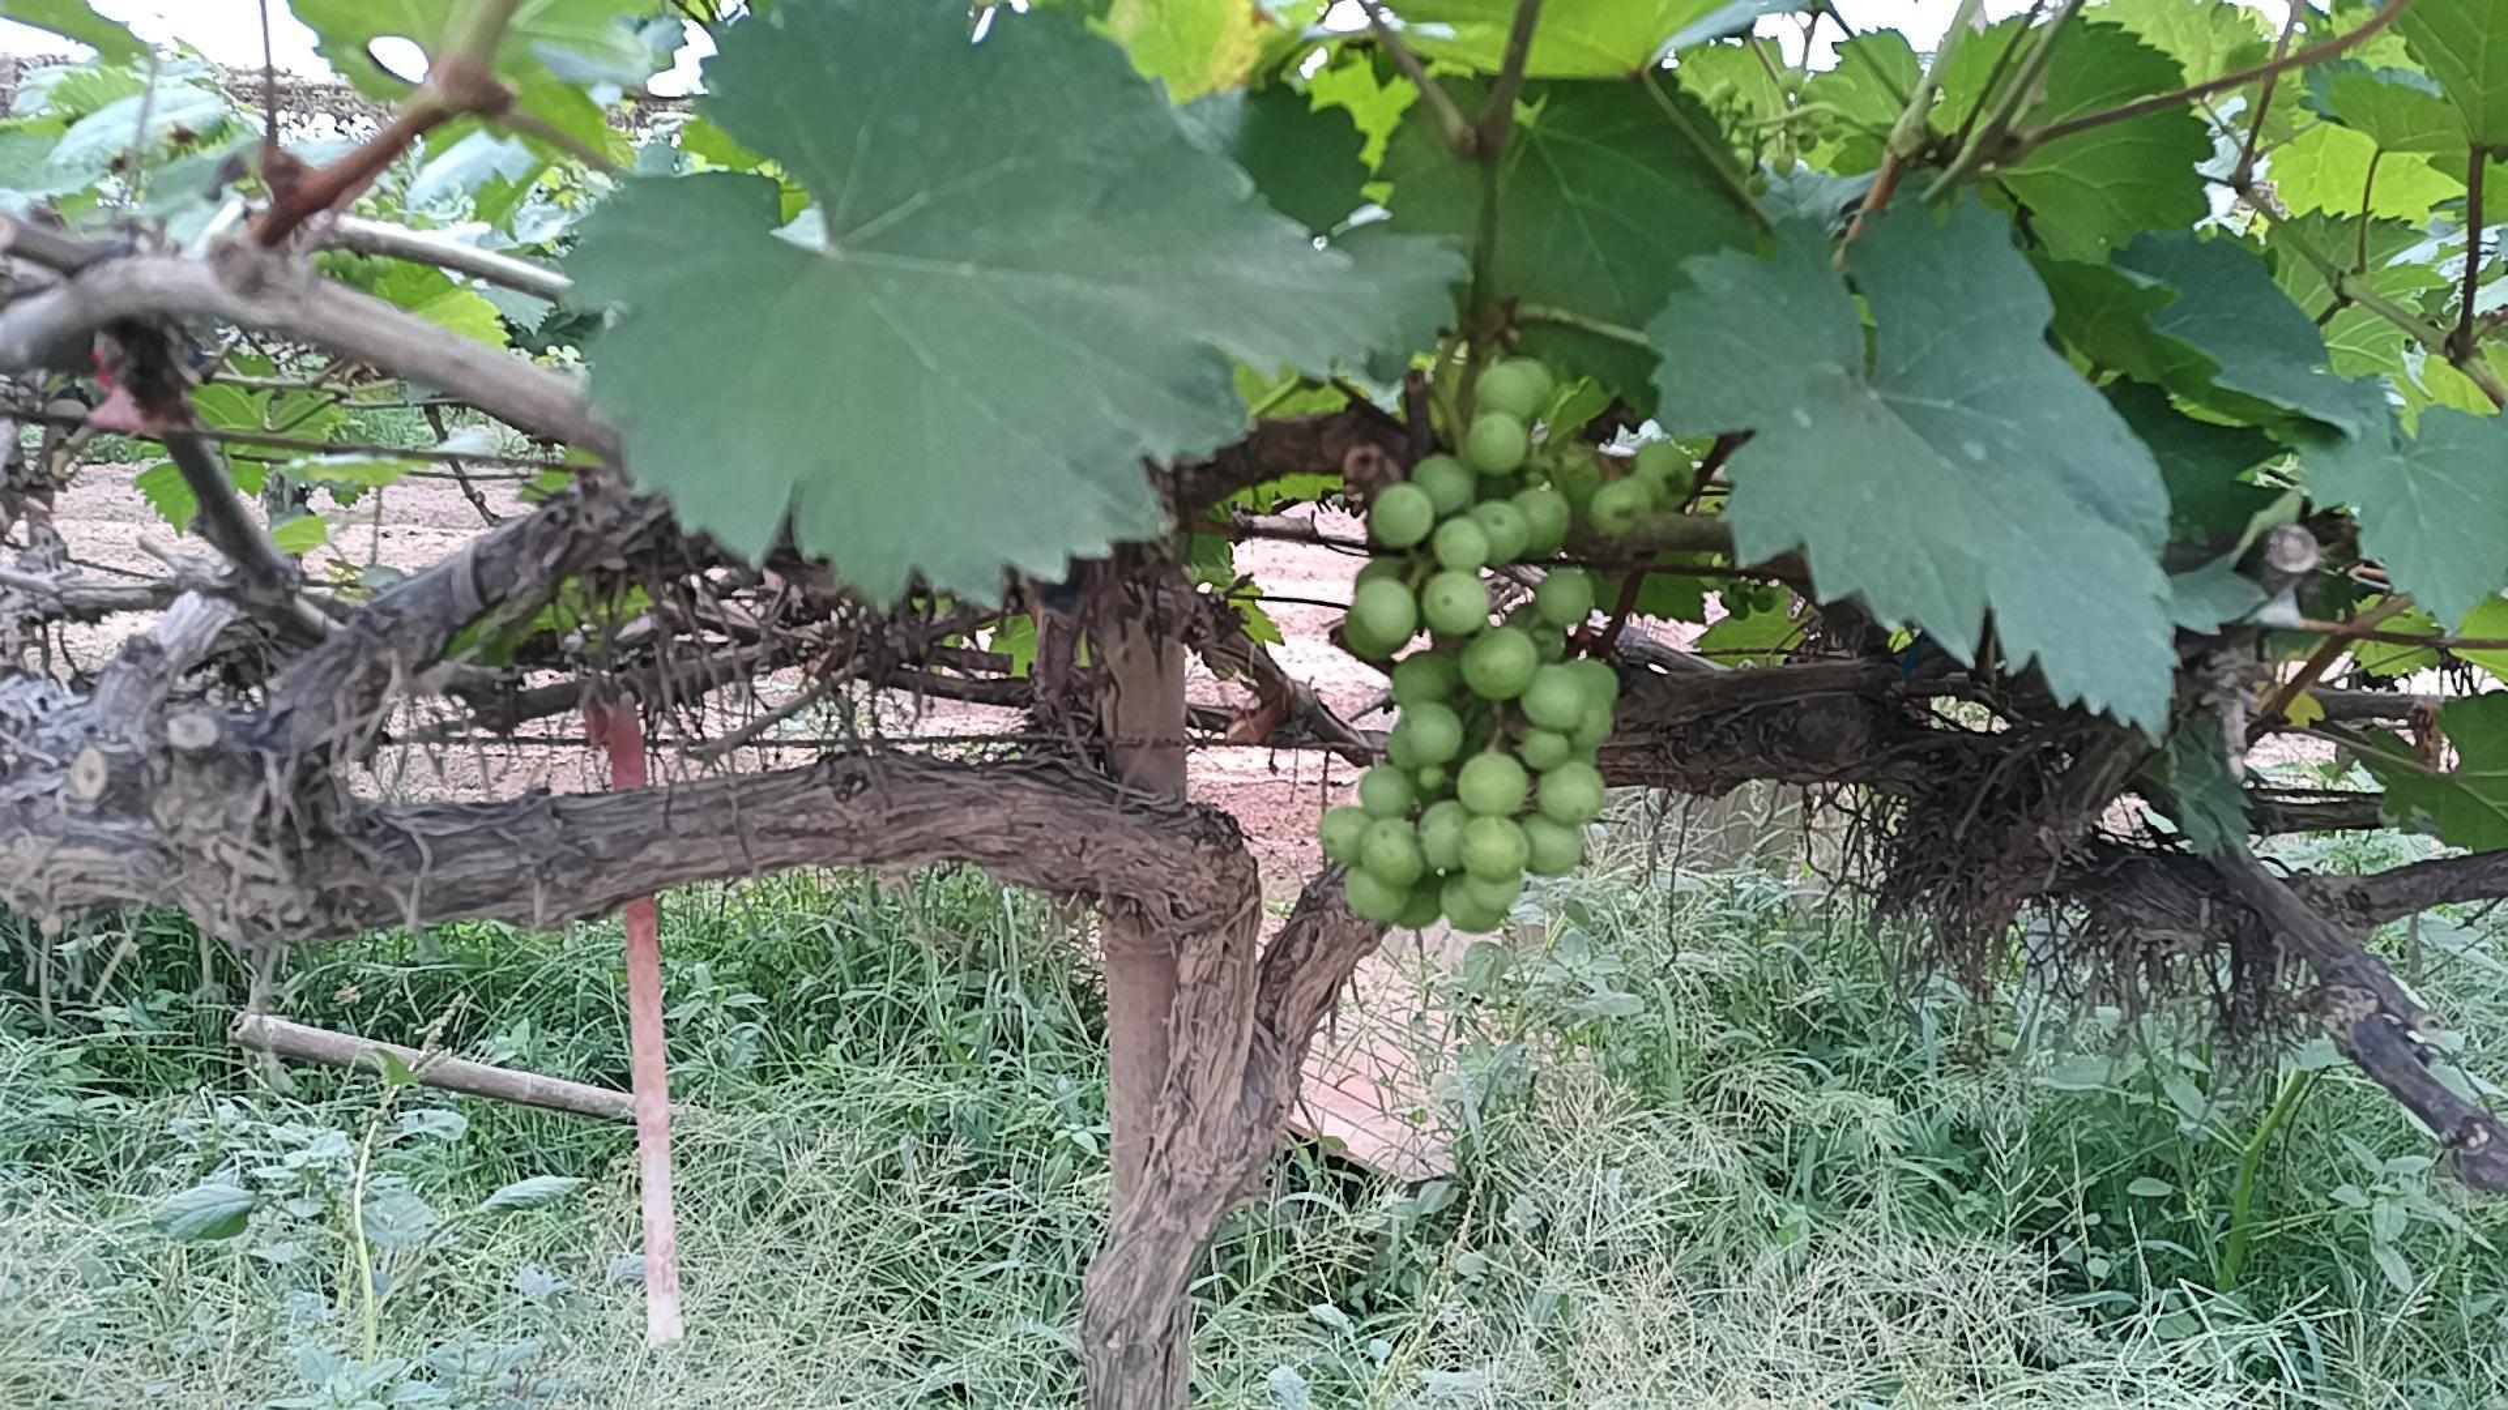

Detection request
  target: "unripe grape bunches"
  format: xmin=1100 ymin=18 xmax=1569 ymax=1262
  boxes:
xmin=1319 ymin=356 xmax=1692 ymax=930
xmin=1719 ymin=582 xmax=1787 ymax=619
